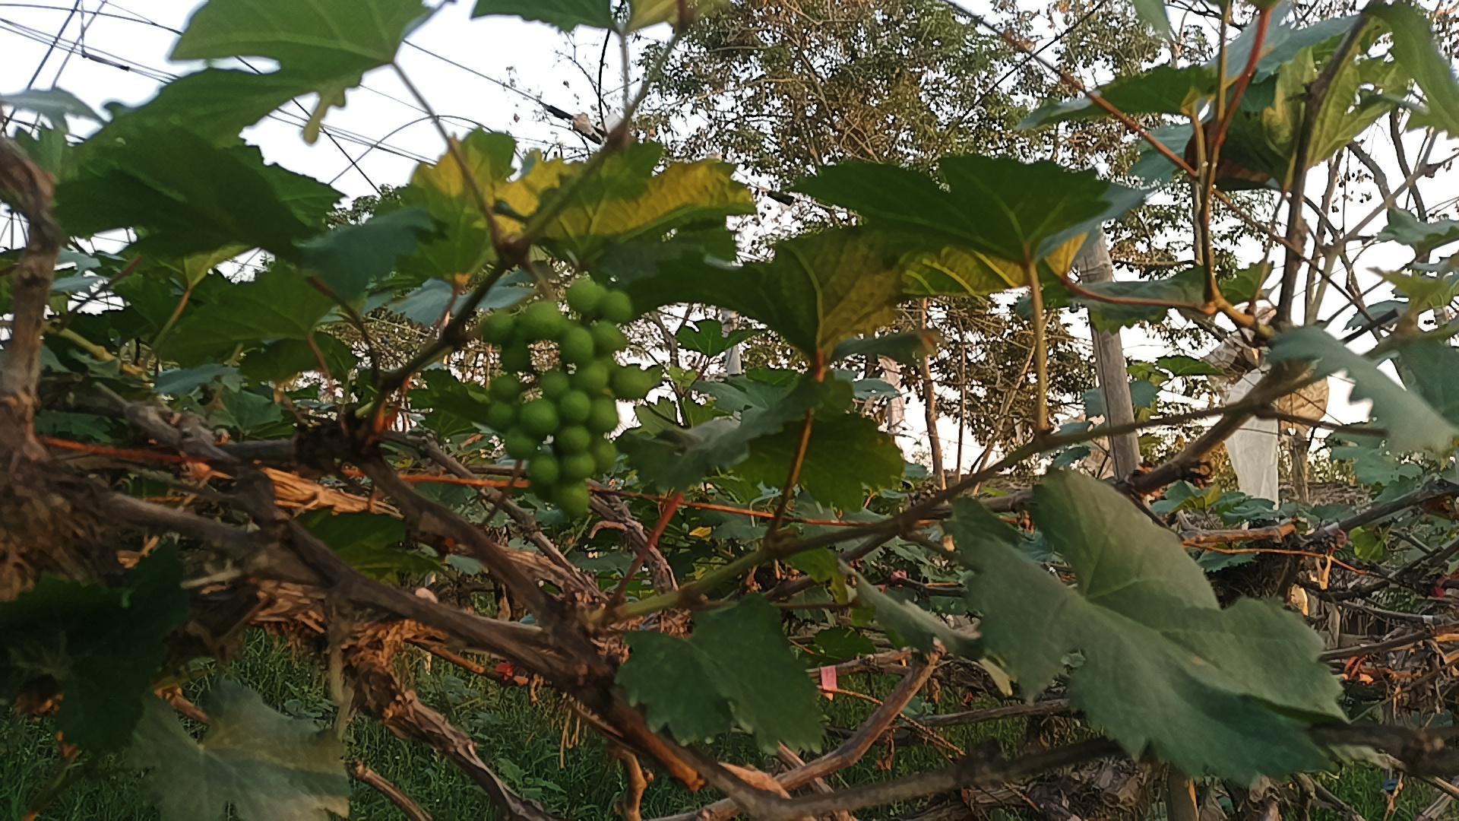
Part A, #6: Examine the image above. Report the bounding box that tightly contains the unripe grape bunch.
[481,281,660,518]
